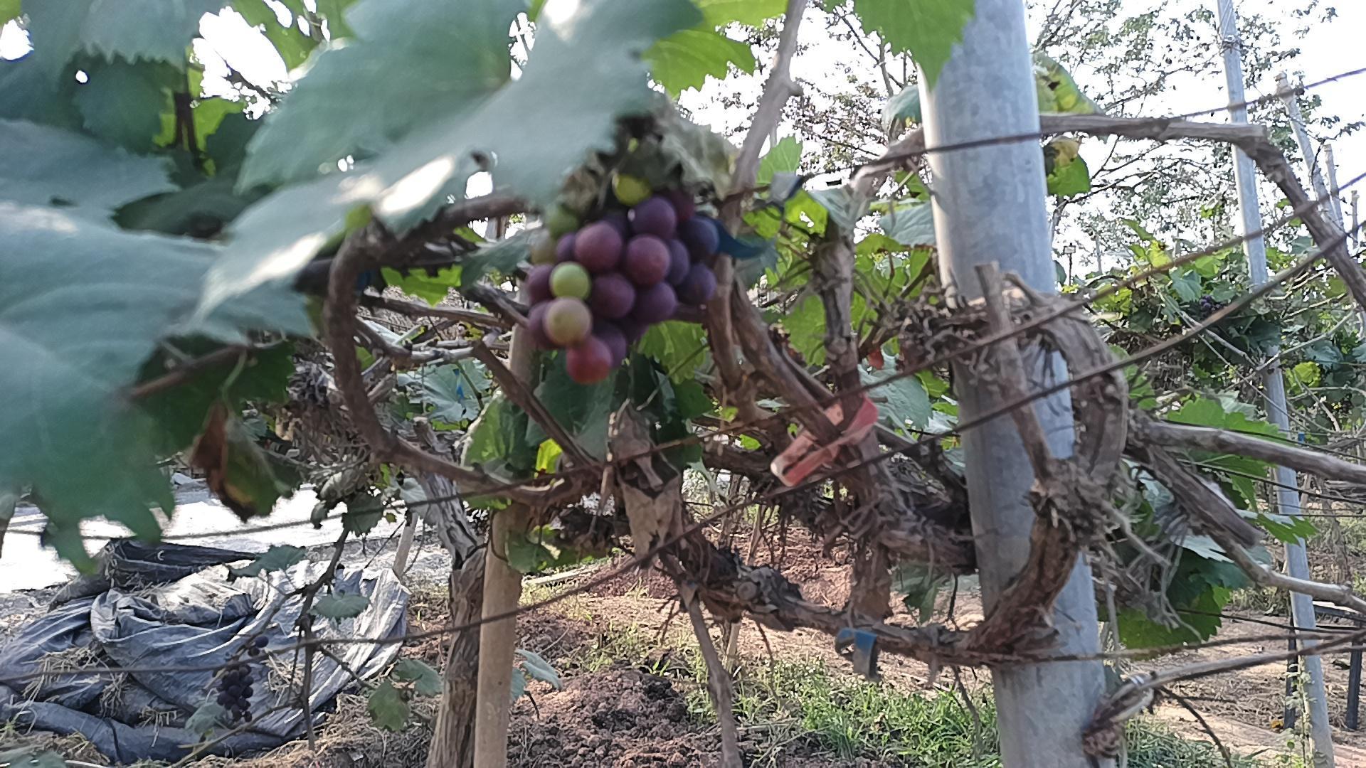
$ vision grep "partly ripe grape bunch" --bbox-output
[524,119,724,383]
